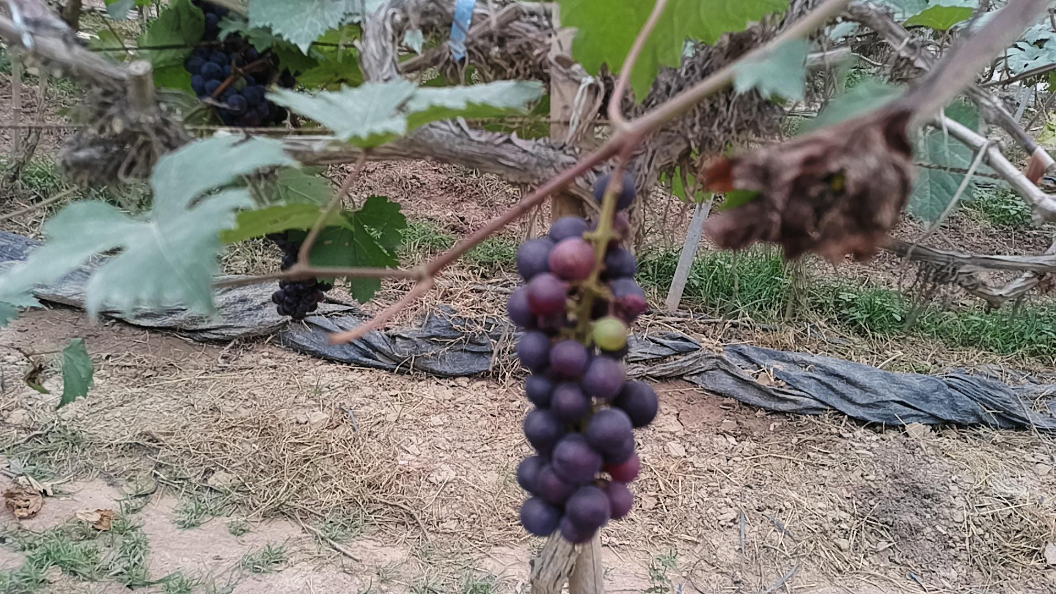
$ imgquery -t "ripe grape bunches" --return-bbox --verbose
[153,0,296,127]
[268,228,333,320]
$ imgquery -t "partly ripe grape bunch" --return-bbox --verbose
[508,170,657,542]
